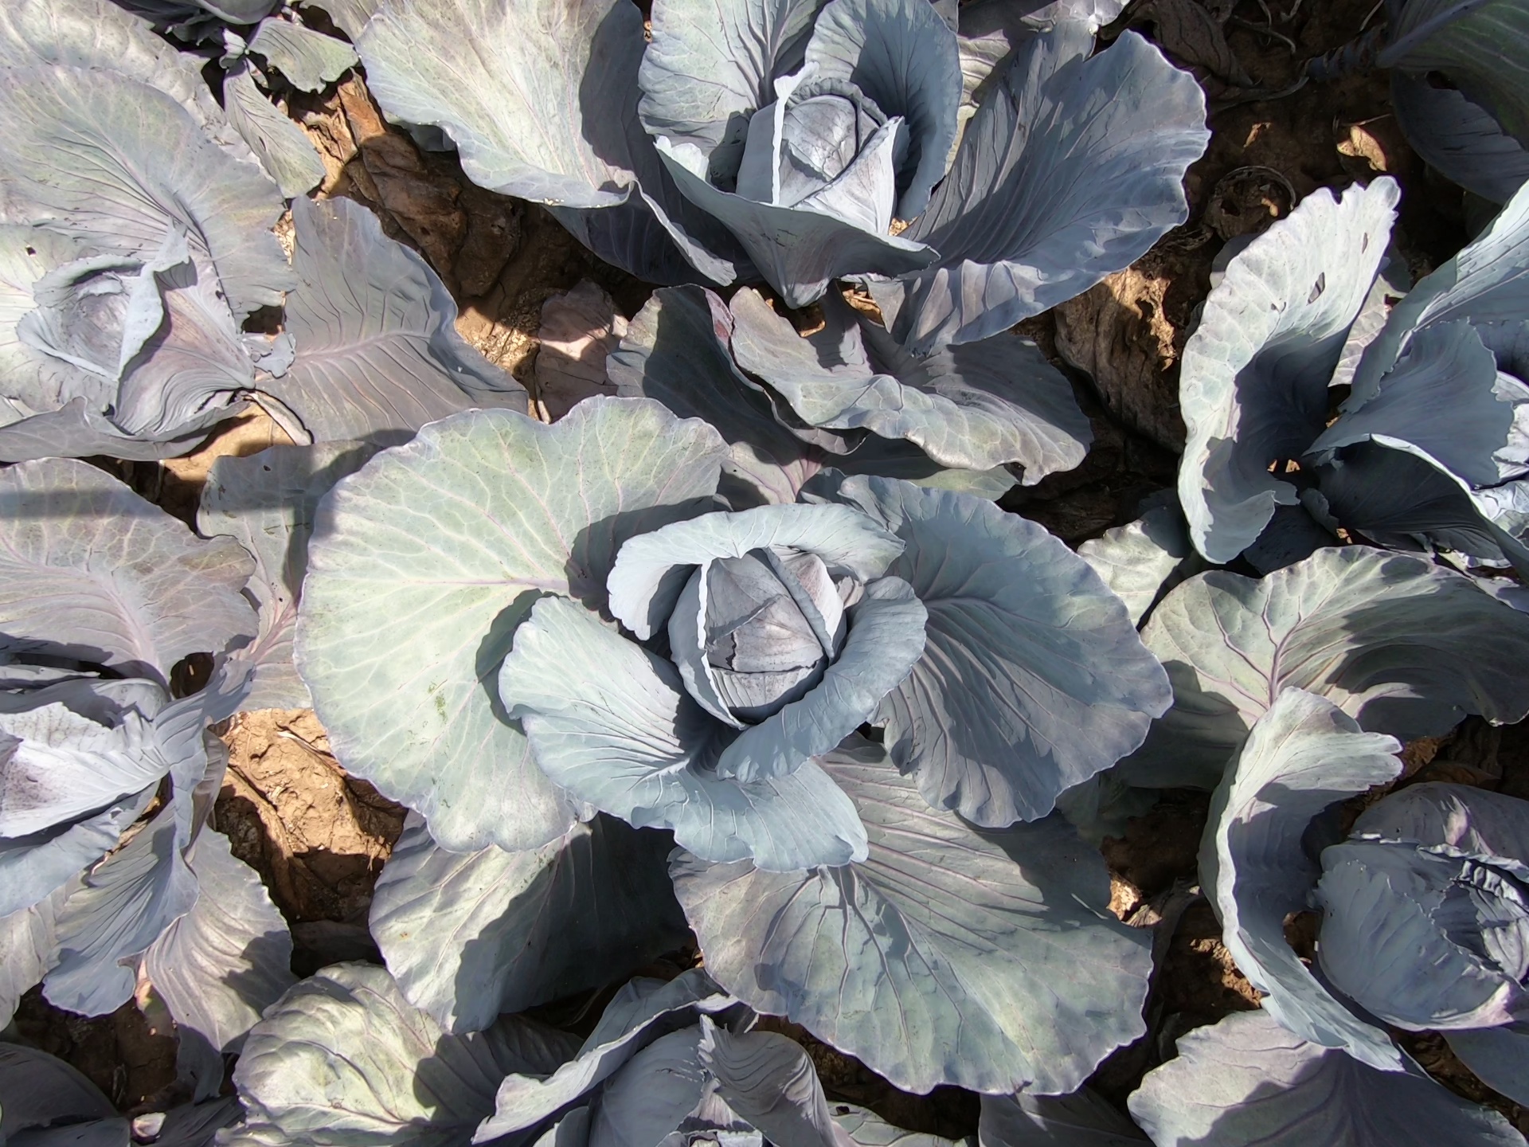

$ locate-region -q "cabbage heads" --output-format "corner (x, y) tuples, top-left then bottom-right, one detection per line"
(1376, 350), (1527, 485)
(602, 1028), (765, 1145)
(0, 683), (164, 836)
(57, 275), (213, 401)
(1327, 790), (1527, 1021)
(675, 542), (846, 722)
(759, 89), (895, 250)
